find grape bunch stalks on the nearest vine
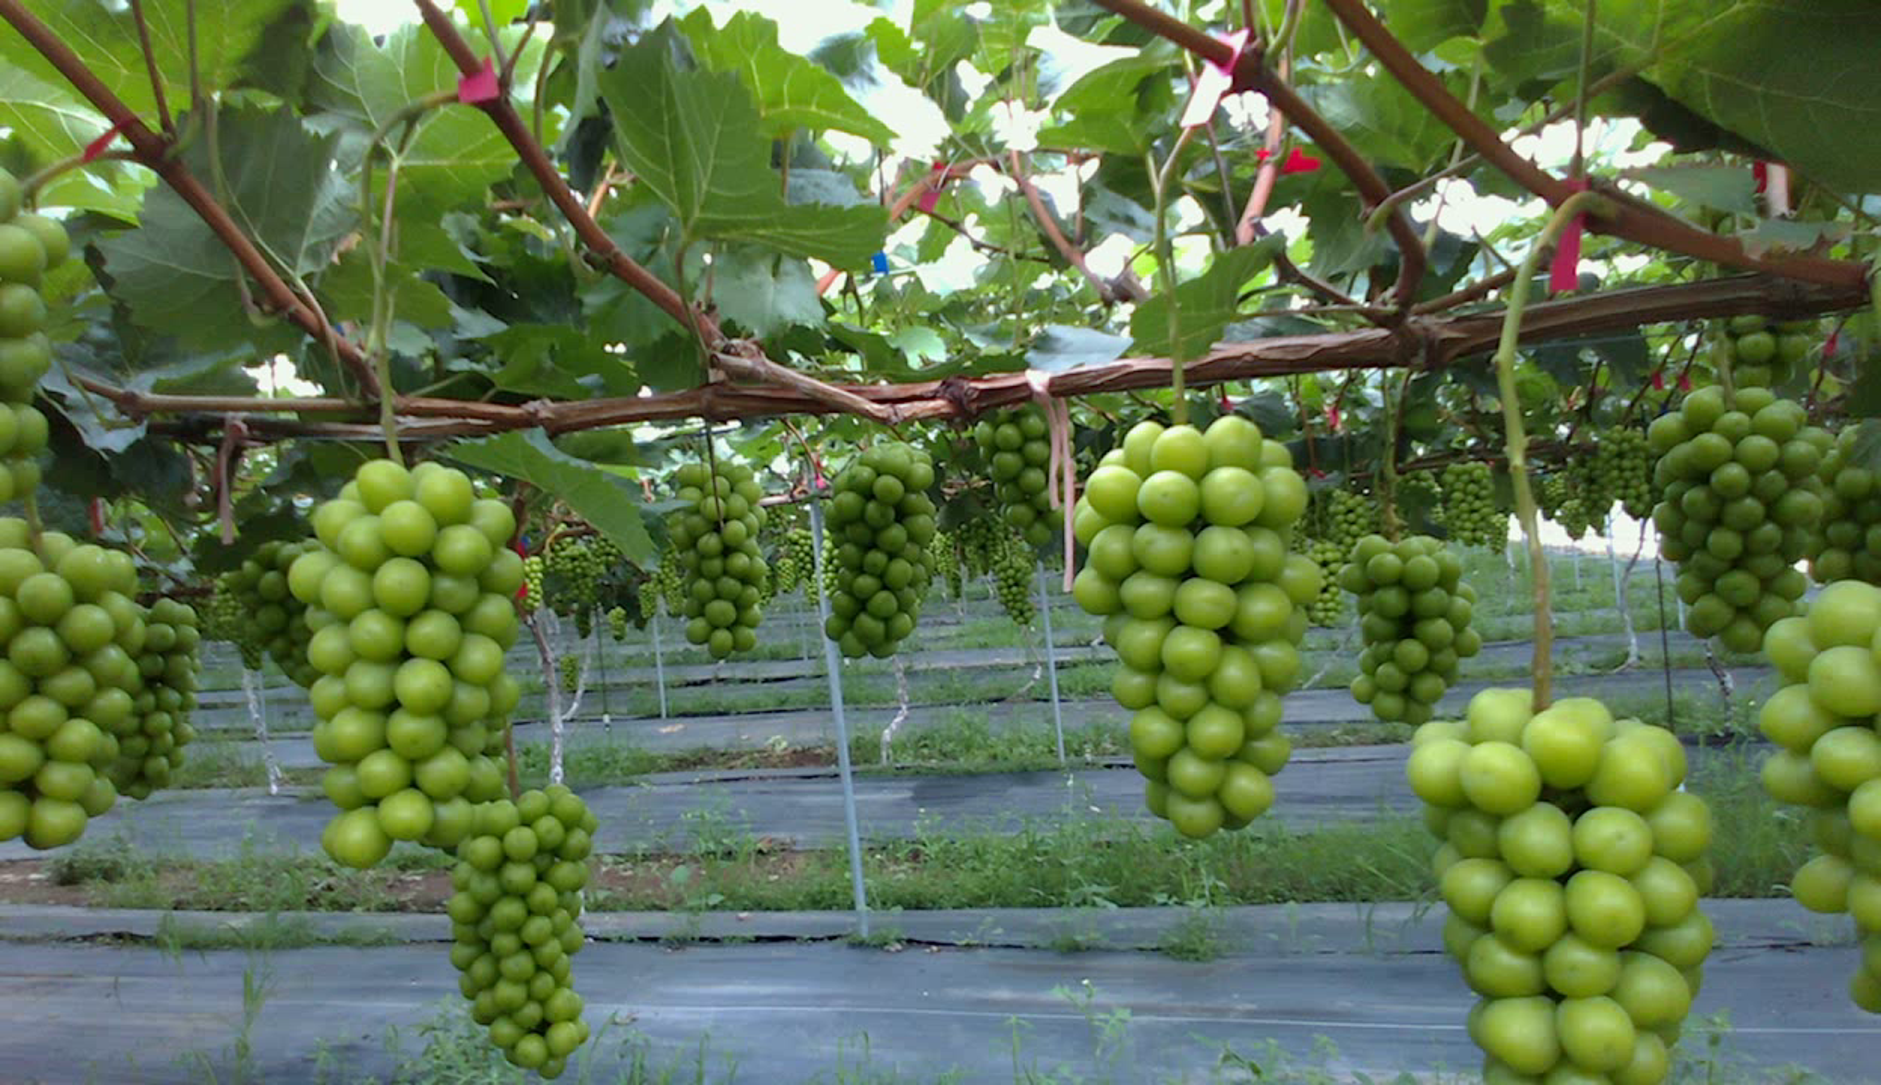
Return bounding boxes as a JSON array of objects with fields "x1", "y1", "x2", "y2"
[
  {"x1": 1491, "y1": 191, "x2": 1598, "y2": 713},
  {"x1": 360, "y1": 90, "x2": 458, "y2": 464},
  {"x1": 1145, "y1": 151, "x2": 1186, "y2": 426}
]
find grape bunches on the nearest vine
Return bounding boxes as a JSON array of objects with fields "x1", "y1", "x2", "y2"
[
  {"x1": 1406, "y1": 686, "x2": 1717, "y2": 1083},
  {"x1": 1760, "y1": 580, "x2": 1879, "y2": 1014},
  {"x1": 1072, "y1": 416, "x2": 1322, "y2": 841},
  {"x1": 288, "y1": 458, "x2": 526, "y2": 873},
  {"x1": 2, "y1": 517, "x2": 143, "y2": 851}
]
